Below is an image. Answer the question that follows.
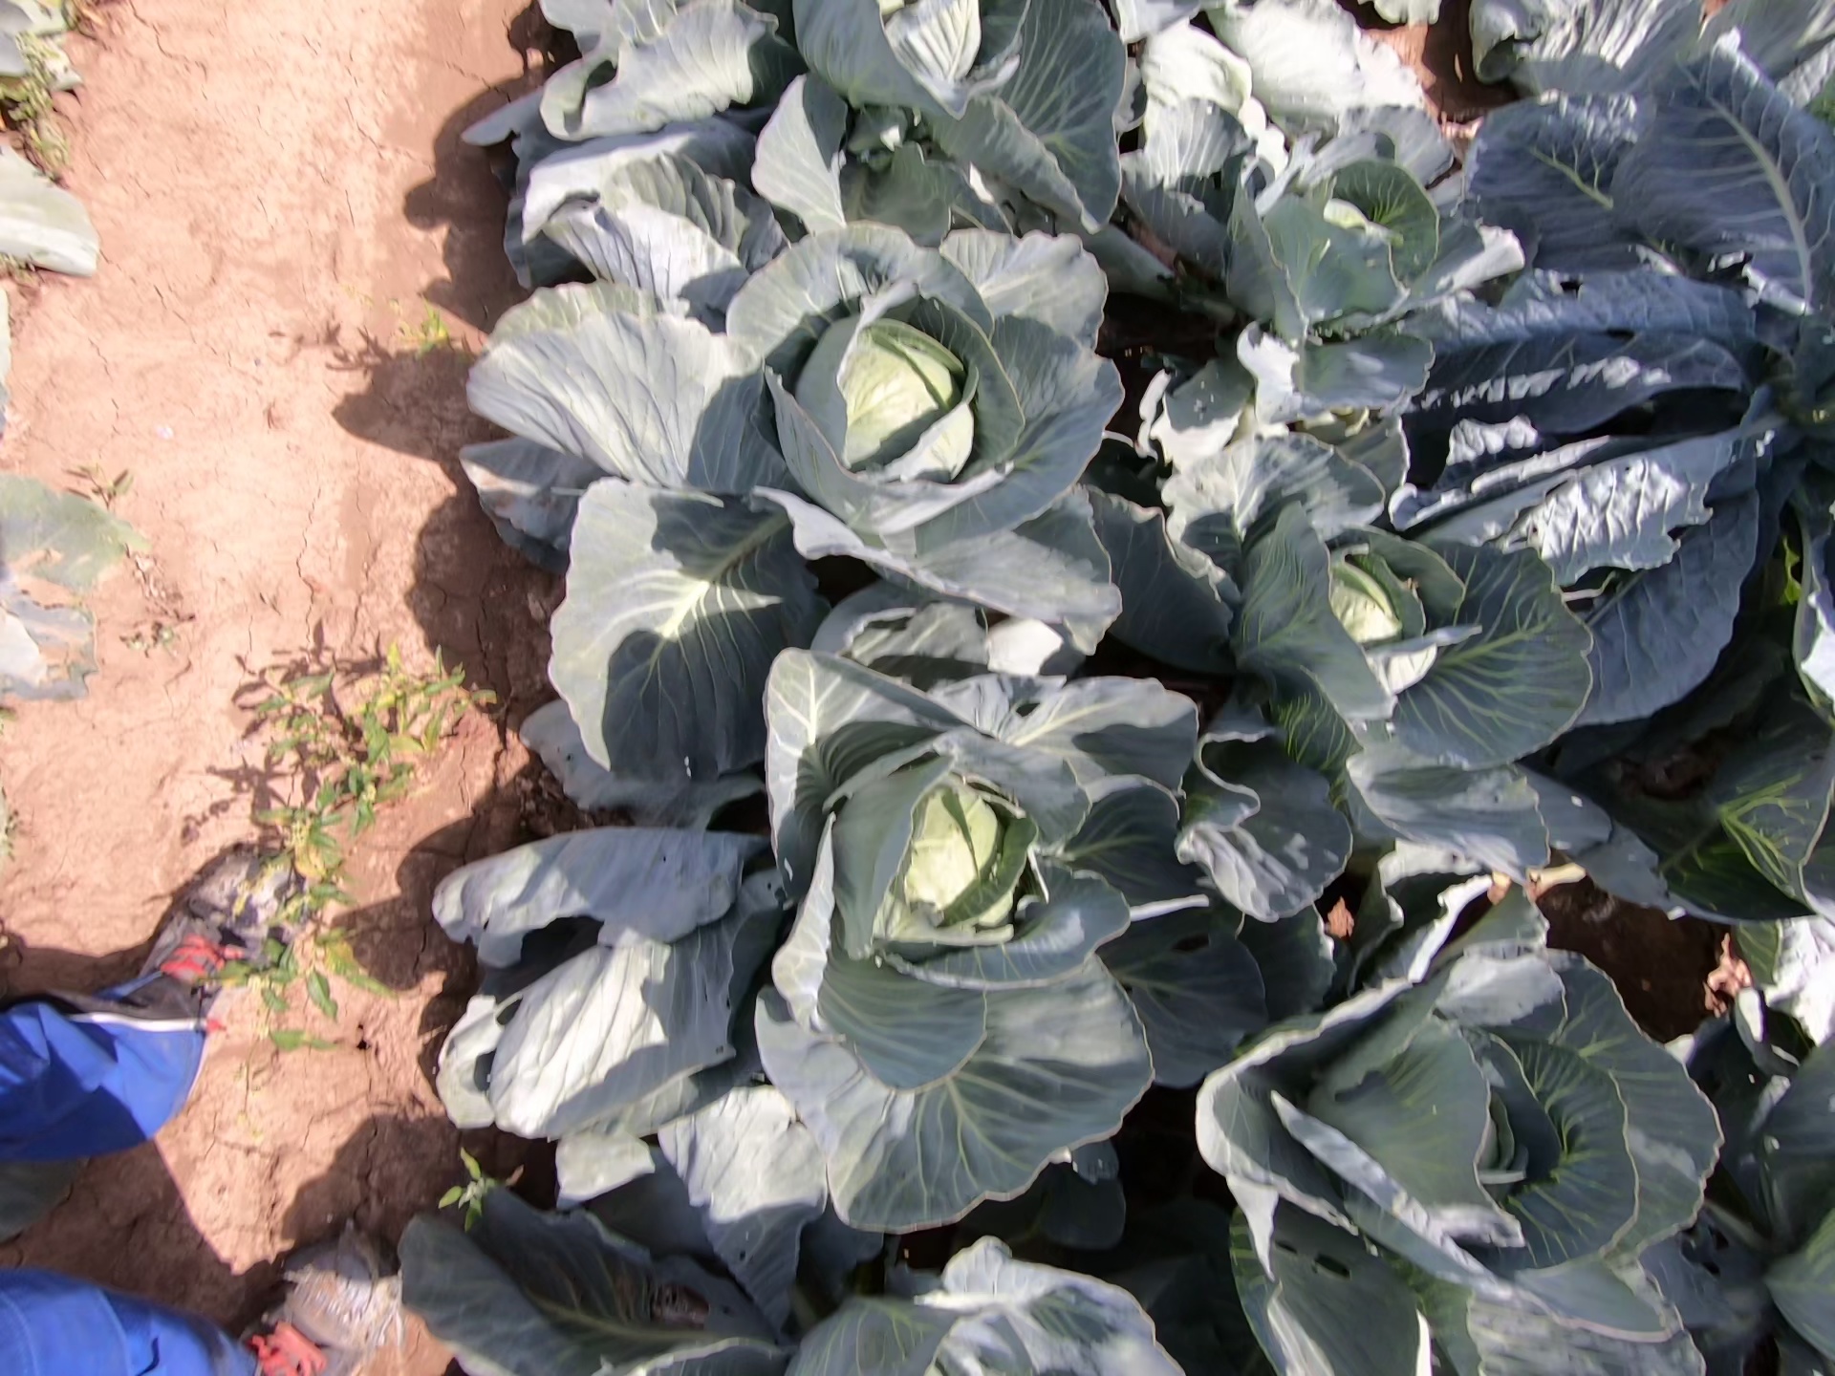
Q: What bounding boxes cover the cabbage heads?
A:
[1256,188,1391,323]
[790,315,972,527]
[834,770,1023,961]
[1327,1057,1521,1210]
[1278,548,1429,692]
[791,0,982,105]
